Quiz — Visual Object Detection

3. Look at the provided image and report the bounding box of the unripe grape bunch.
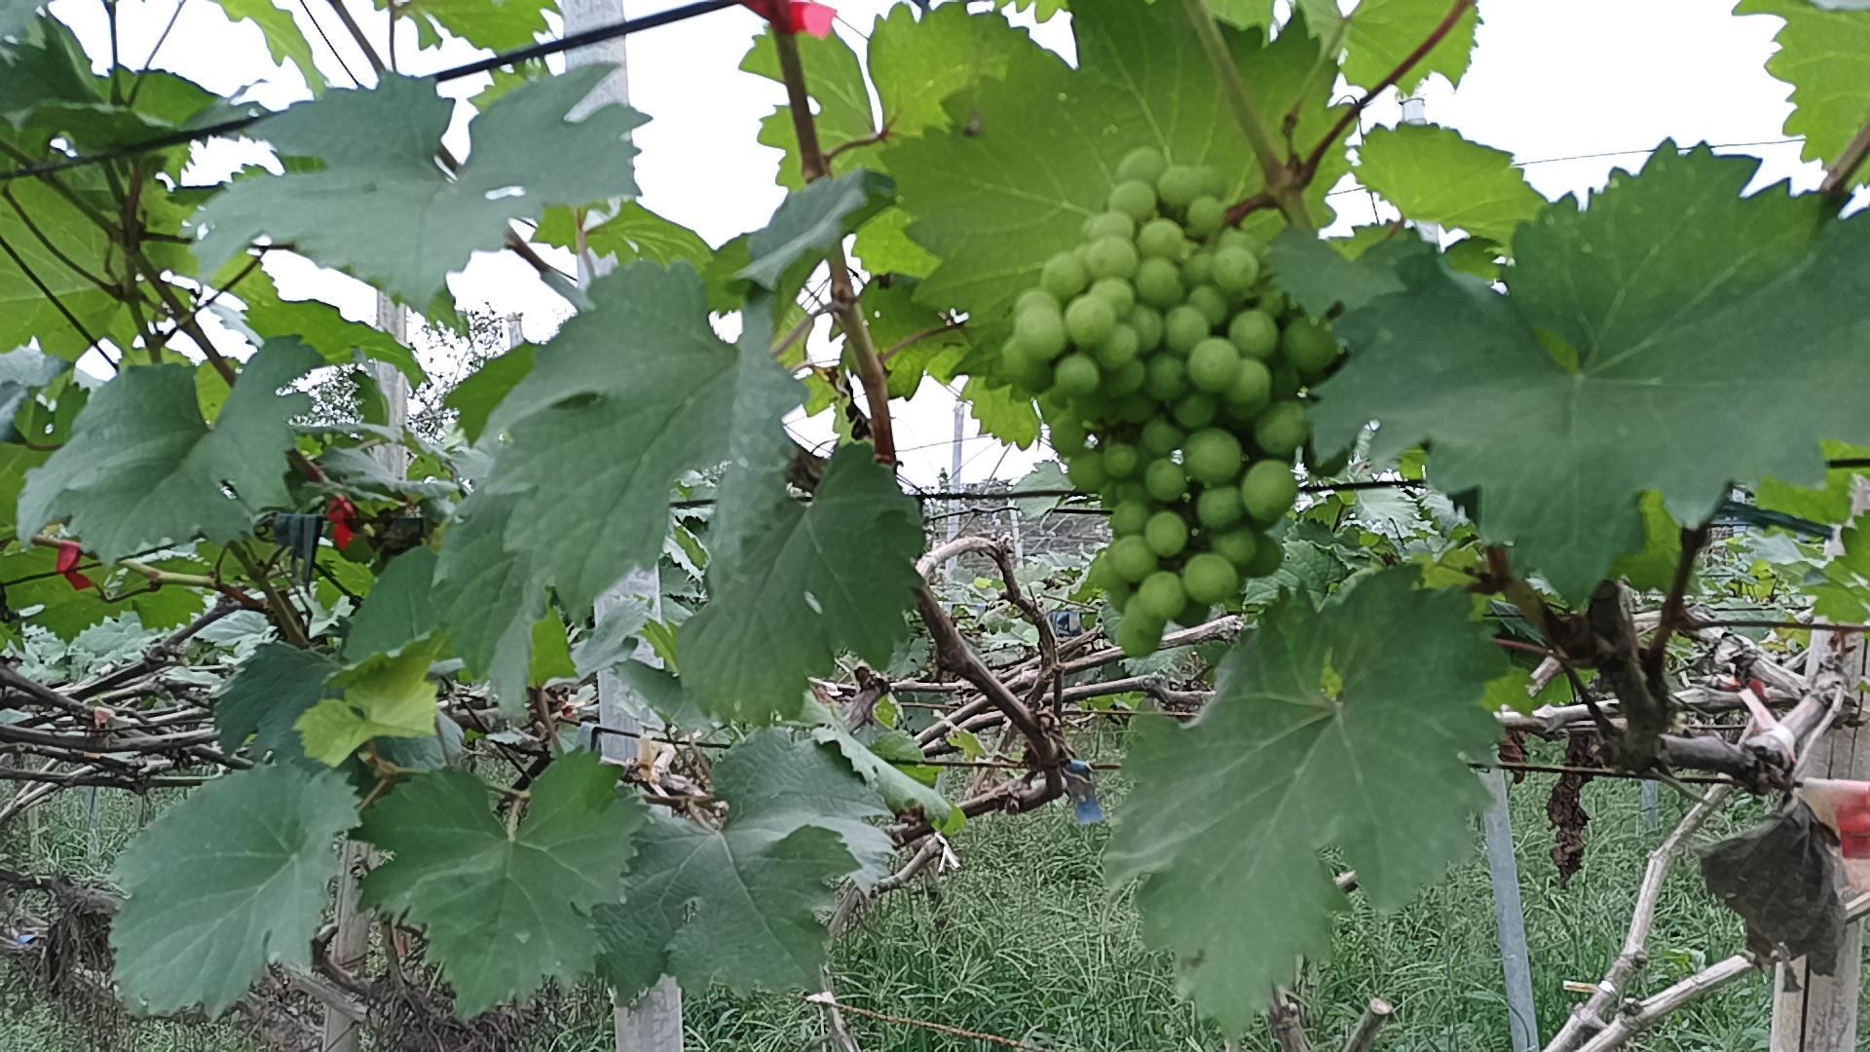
[1002,146,1340,658]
